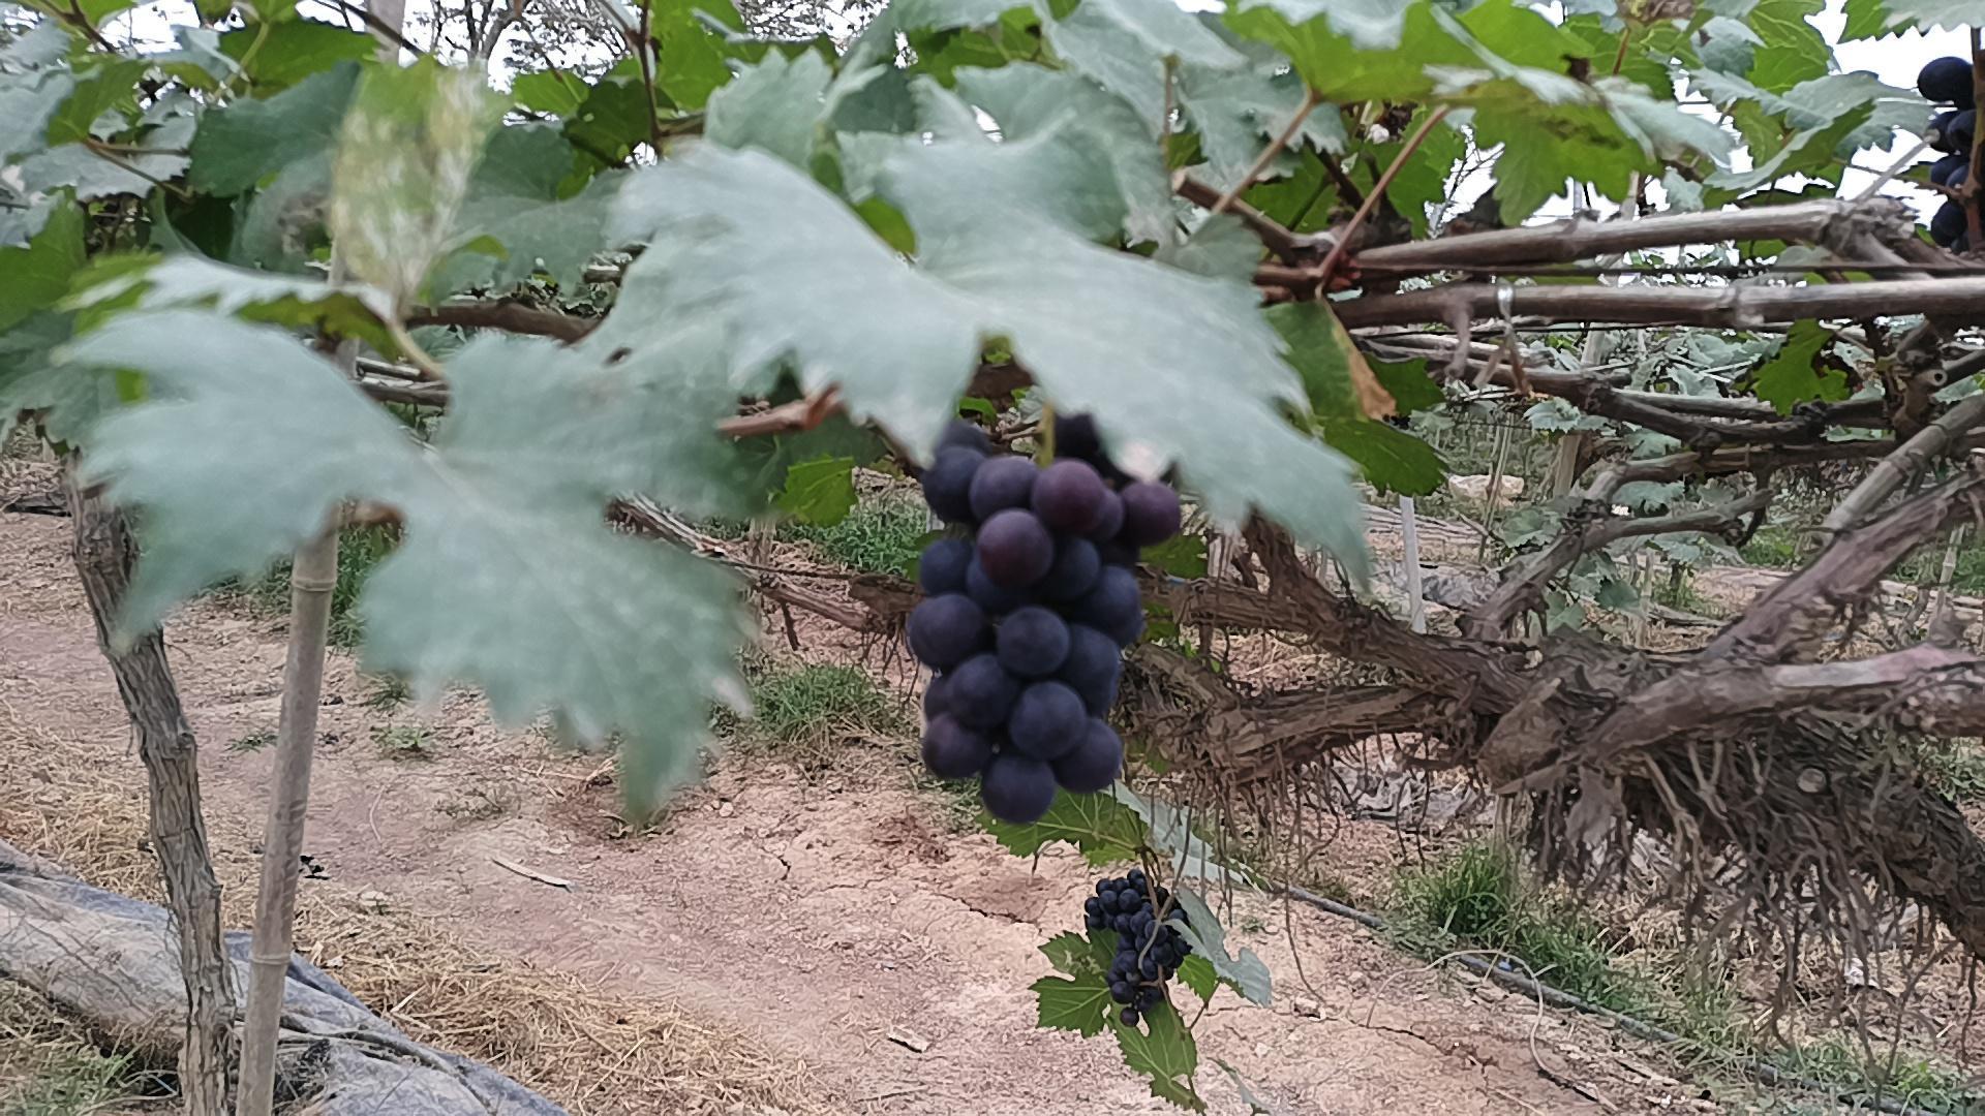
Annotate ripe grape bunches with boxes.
[1082,867,1193,1028]
[1918,56,1979,253]
[907,415,1182,824]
